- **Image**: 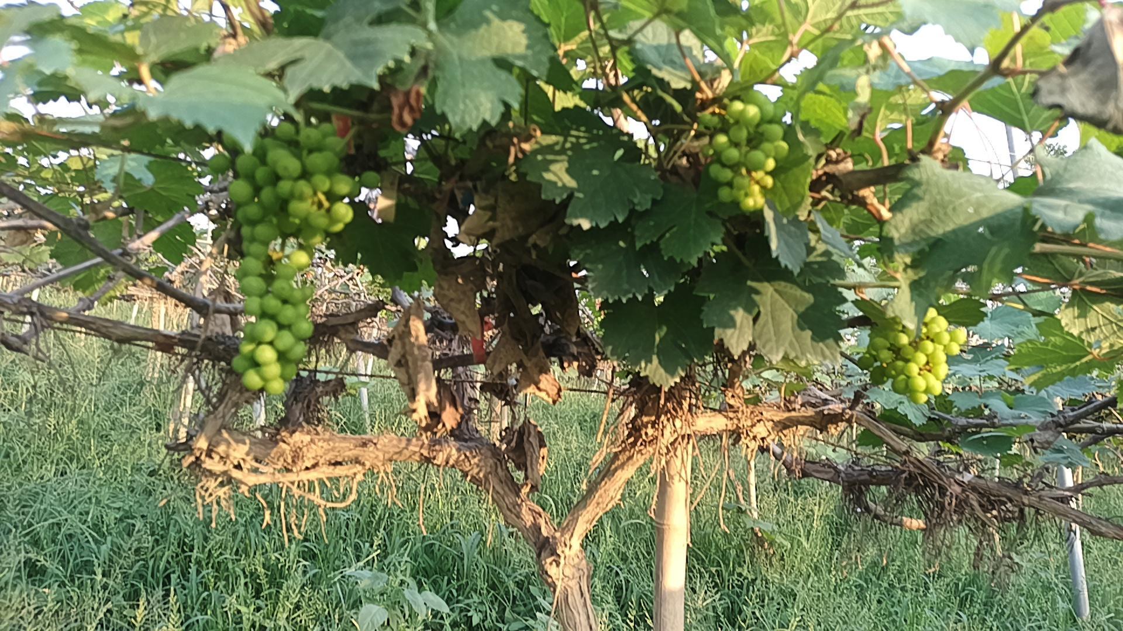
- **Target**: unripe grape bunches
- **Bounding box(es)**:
[208,122,379,394]
[858,308,967,404]
[699,90,789,212]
